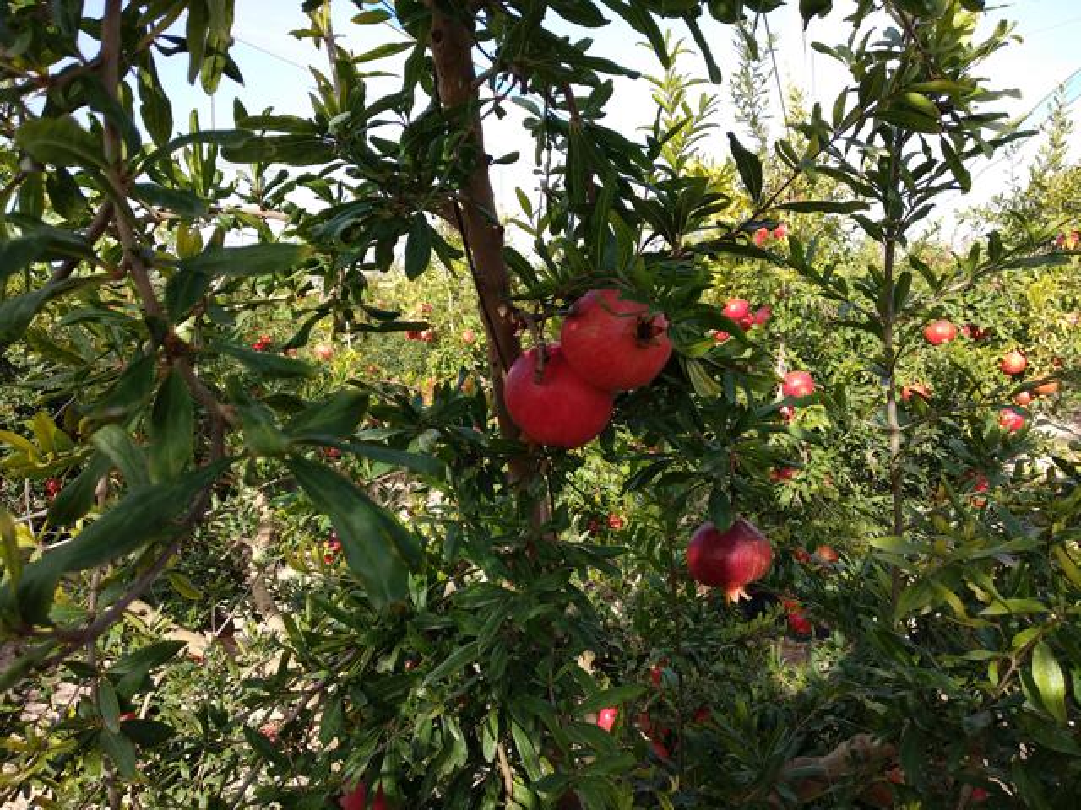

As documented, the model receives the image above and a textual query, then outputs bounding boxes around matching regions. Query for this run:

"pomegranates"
[721,299,750,321]
[684,516,775,604]
[502,343,615,454]
[998,407,1024,430]
[787,614,814,636]
[559,289,671,391]
[1012,390,1032,407]
[922,319,956,346]
[1002,351,1027,375]
[1030,381,1061,398]
[735,312,757,331]
[780,370,814,398]
[596,704,618,732]
[340,781,387,810]
[753,305,772,324]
